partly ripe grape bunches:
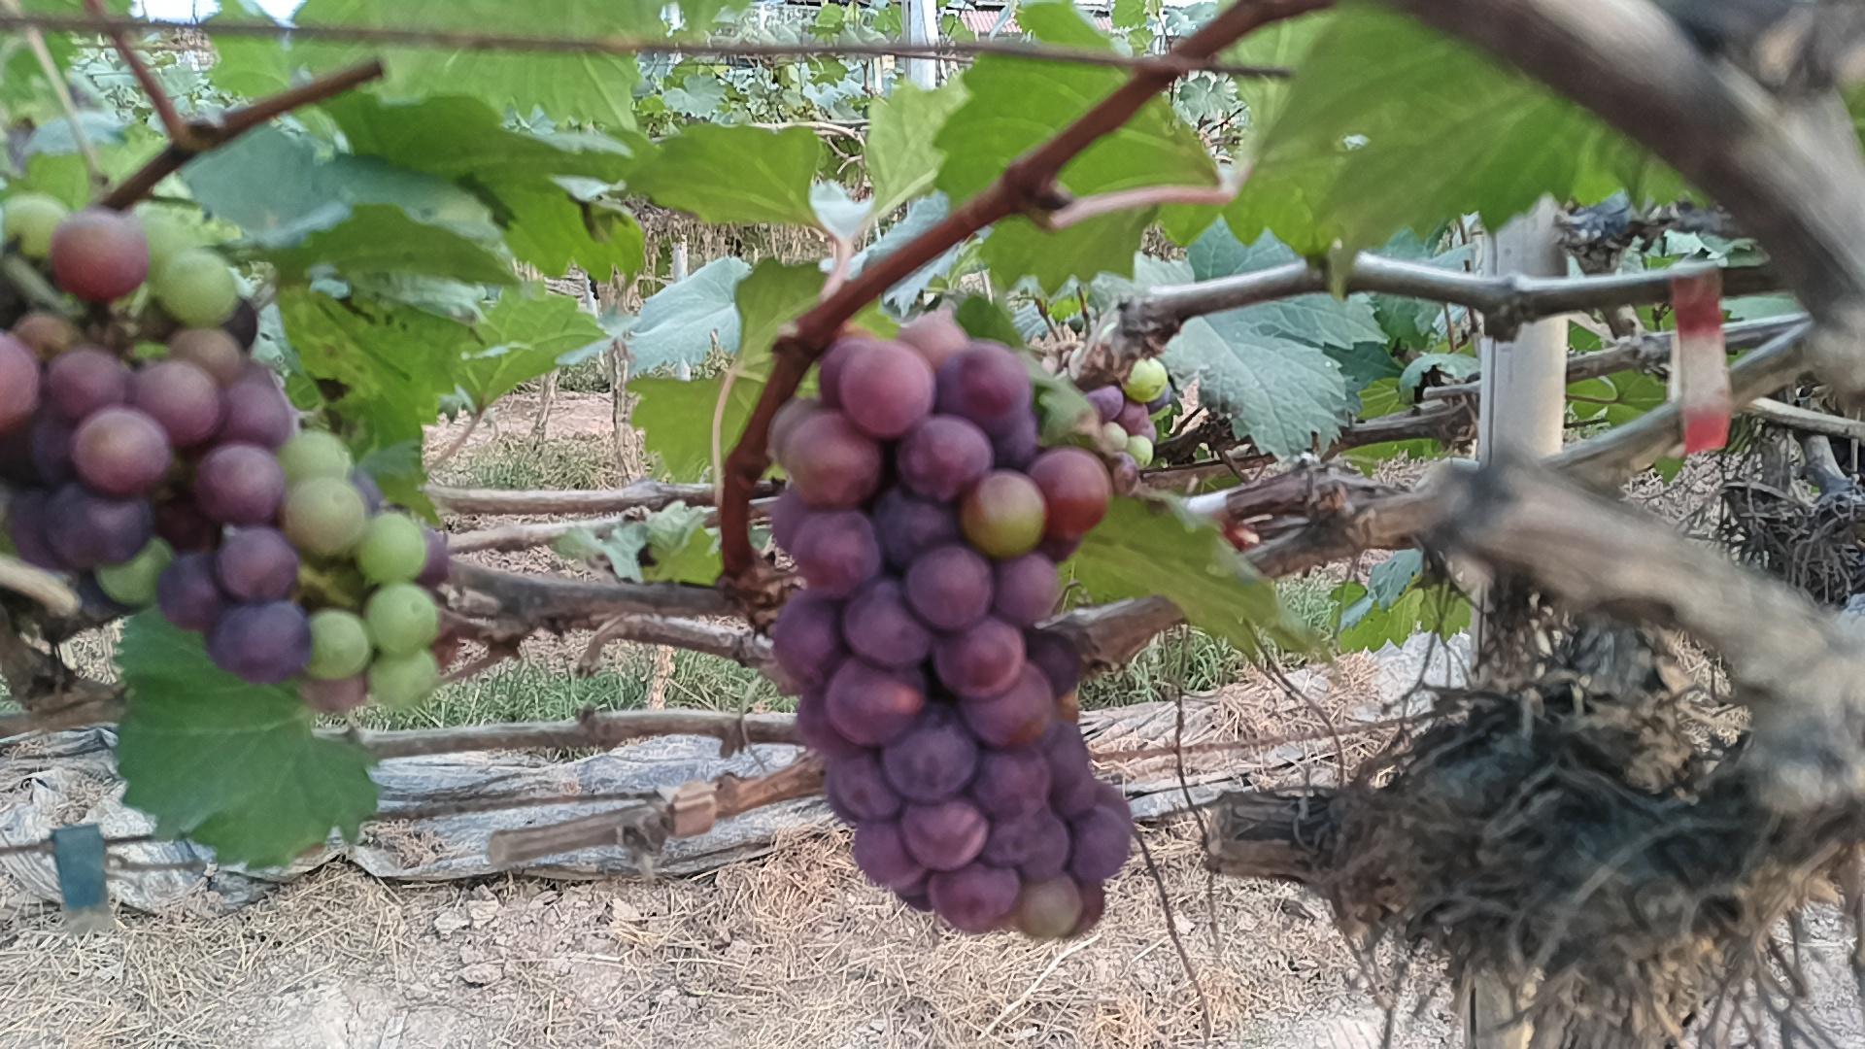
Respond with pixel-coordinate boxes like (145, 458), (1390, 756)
(1088, 359), (1170, 491)
(0, 196), (449, 710)
(771, 312), (1133, 936)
